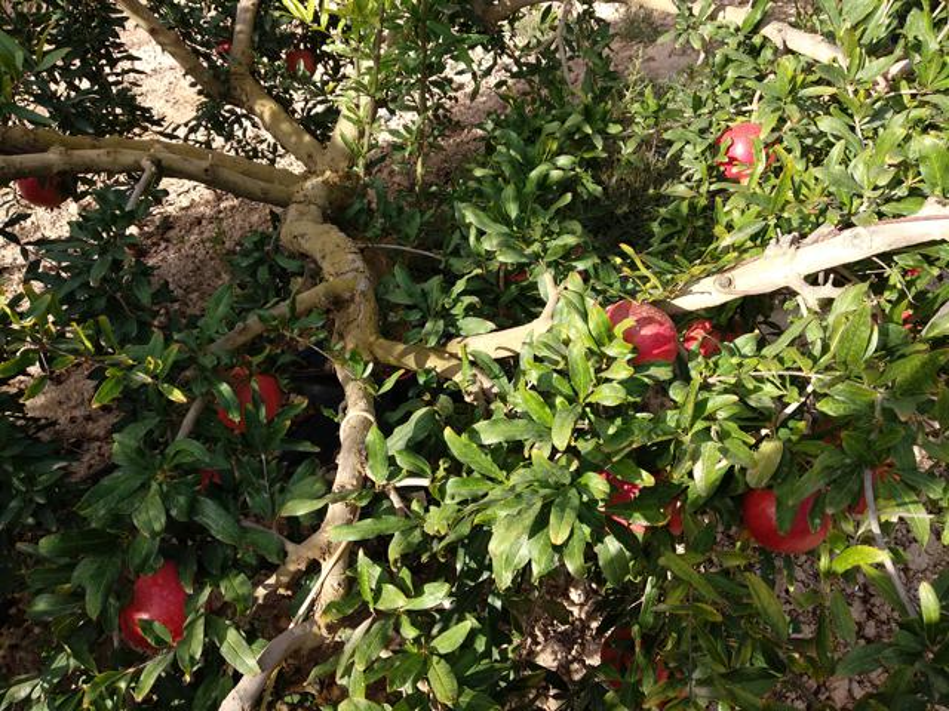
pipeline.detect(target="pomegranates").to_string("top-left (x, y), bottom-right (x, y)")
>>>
top-left (285, 49), bottom-right (317, 74)
top-left (741, 489), bottom-right (833, 554)
top-left (682, 320), bottom-right (734, 357)
top-left (599, 625), bottom-right (688, 711)
top-left (215, 40), bottom-right (233, 55)
top-left (601, 470), bottom-right (652, 533)
top-left (18, 175), bottom-right (67, 212)
top-left (216, 366), bottom-right (285, 430)
top-left (716, 123), bottom-right (762, 181)
top-left (605, 299), bottom-right (681, 366)
top-left (664, 499), bottom-right (684, 536)
top-left (119, 554), bottom-right (190, 656)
